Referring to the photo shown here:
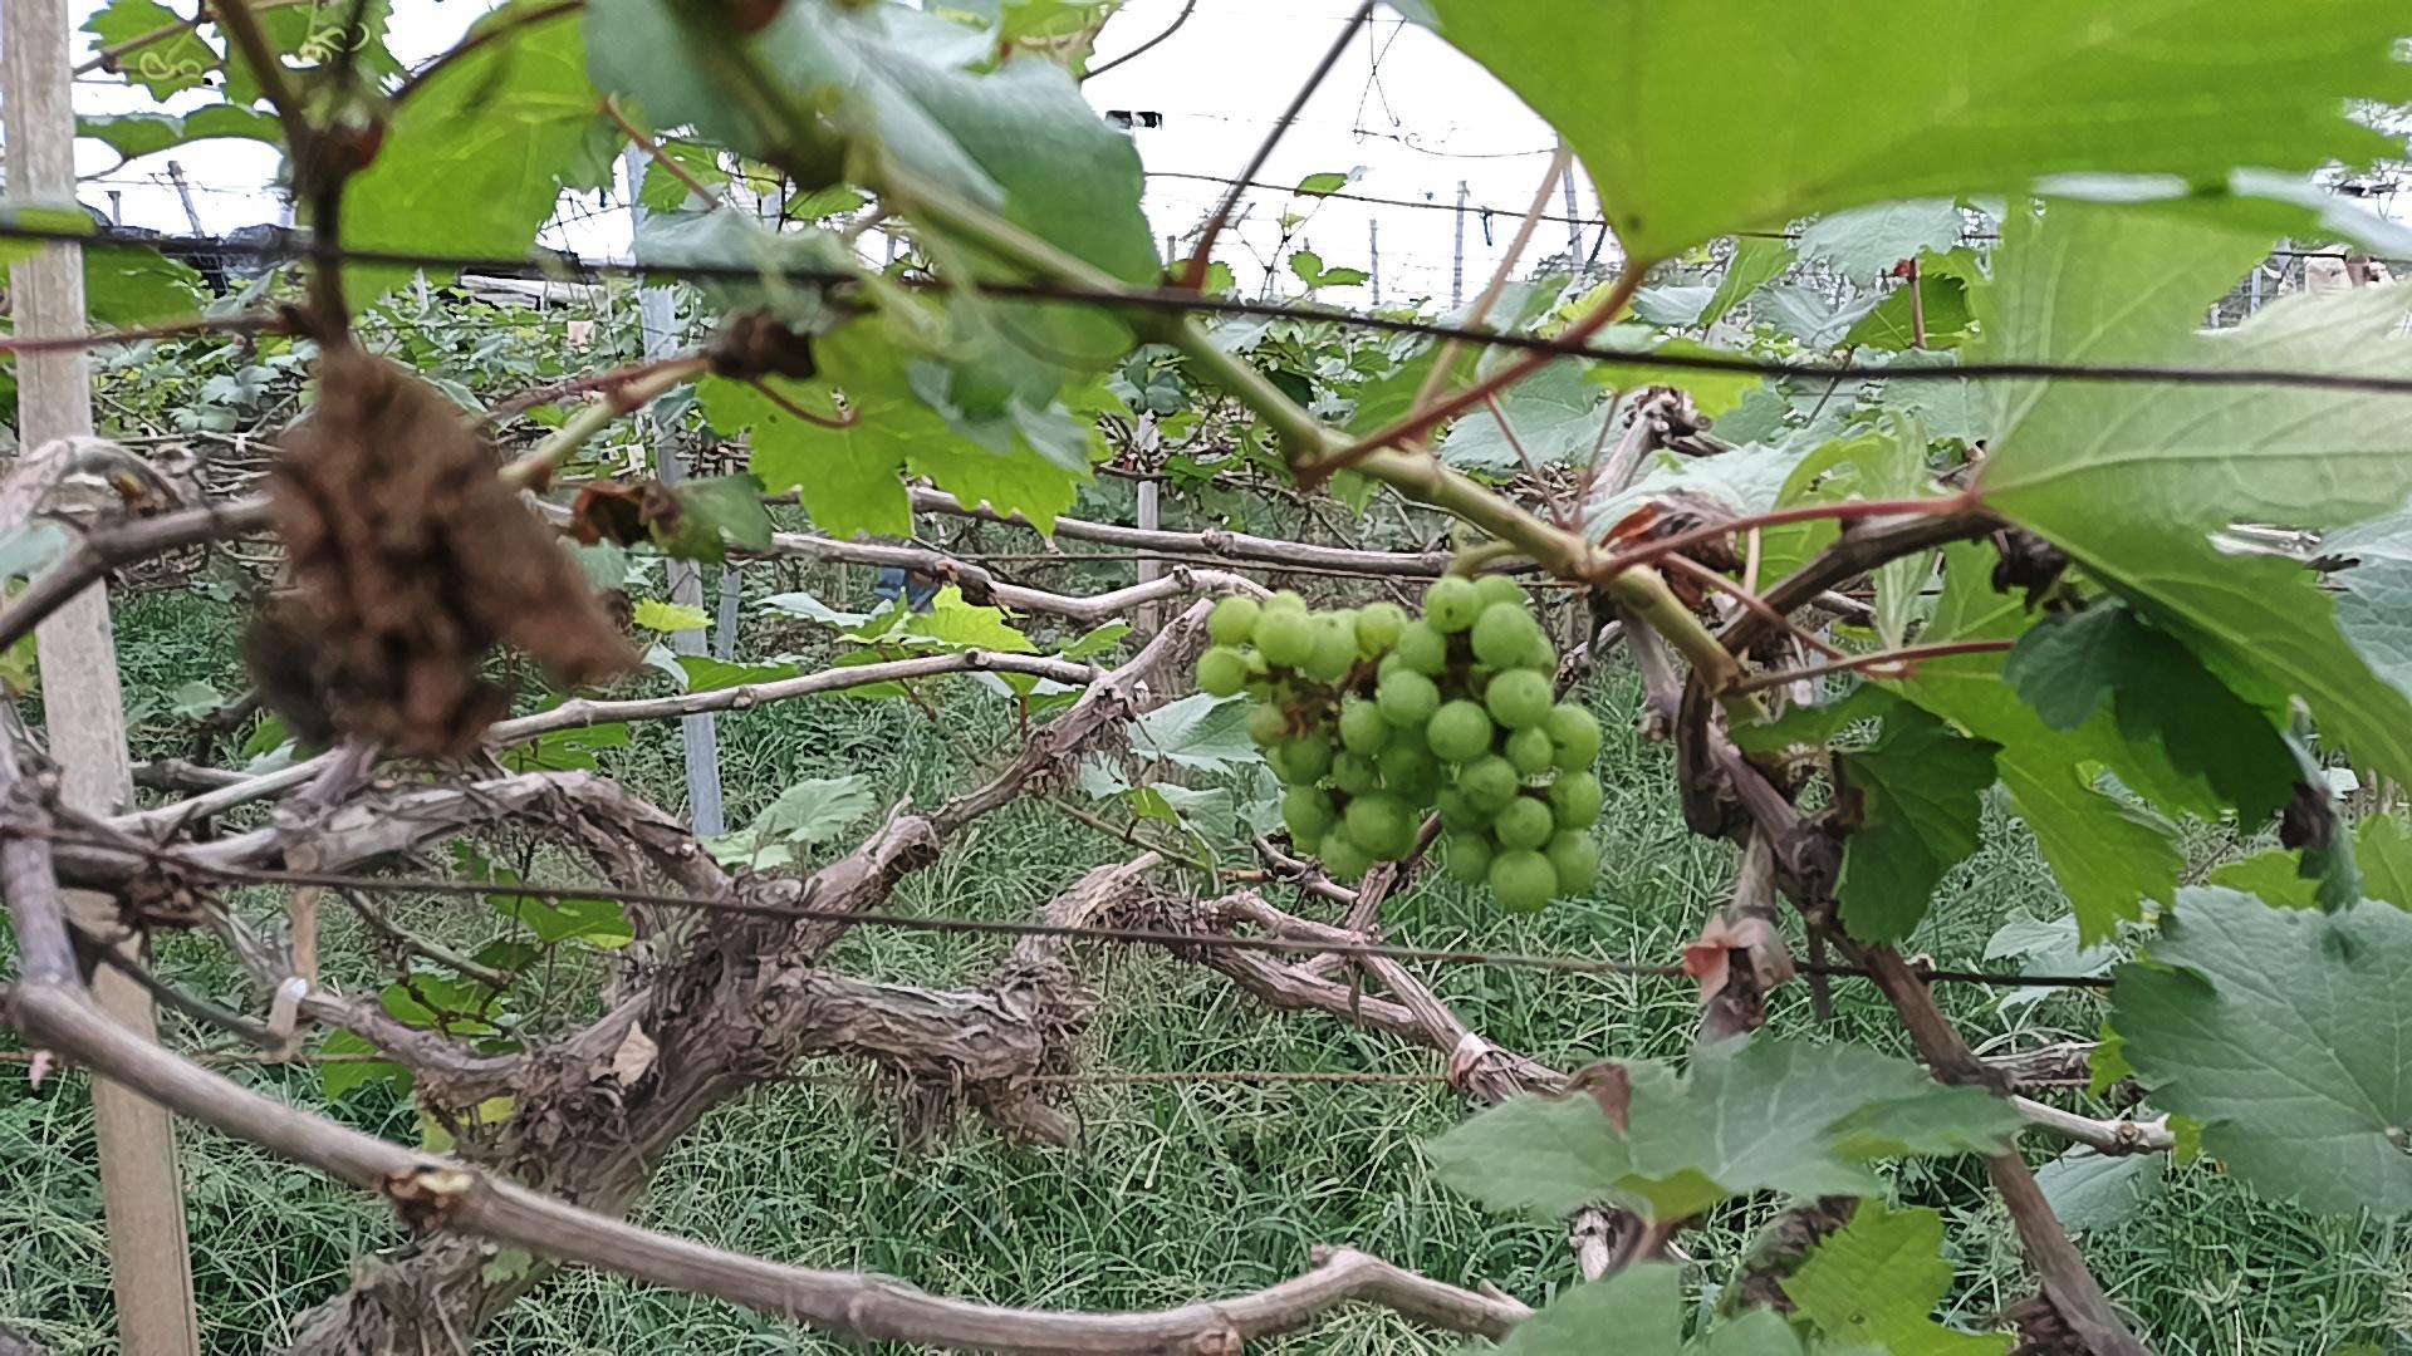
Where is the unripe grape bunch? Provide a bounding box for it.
[1198,578,1600,909]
